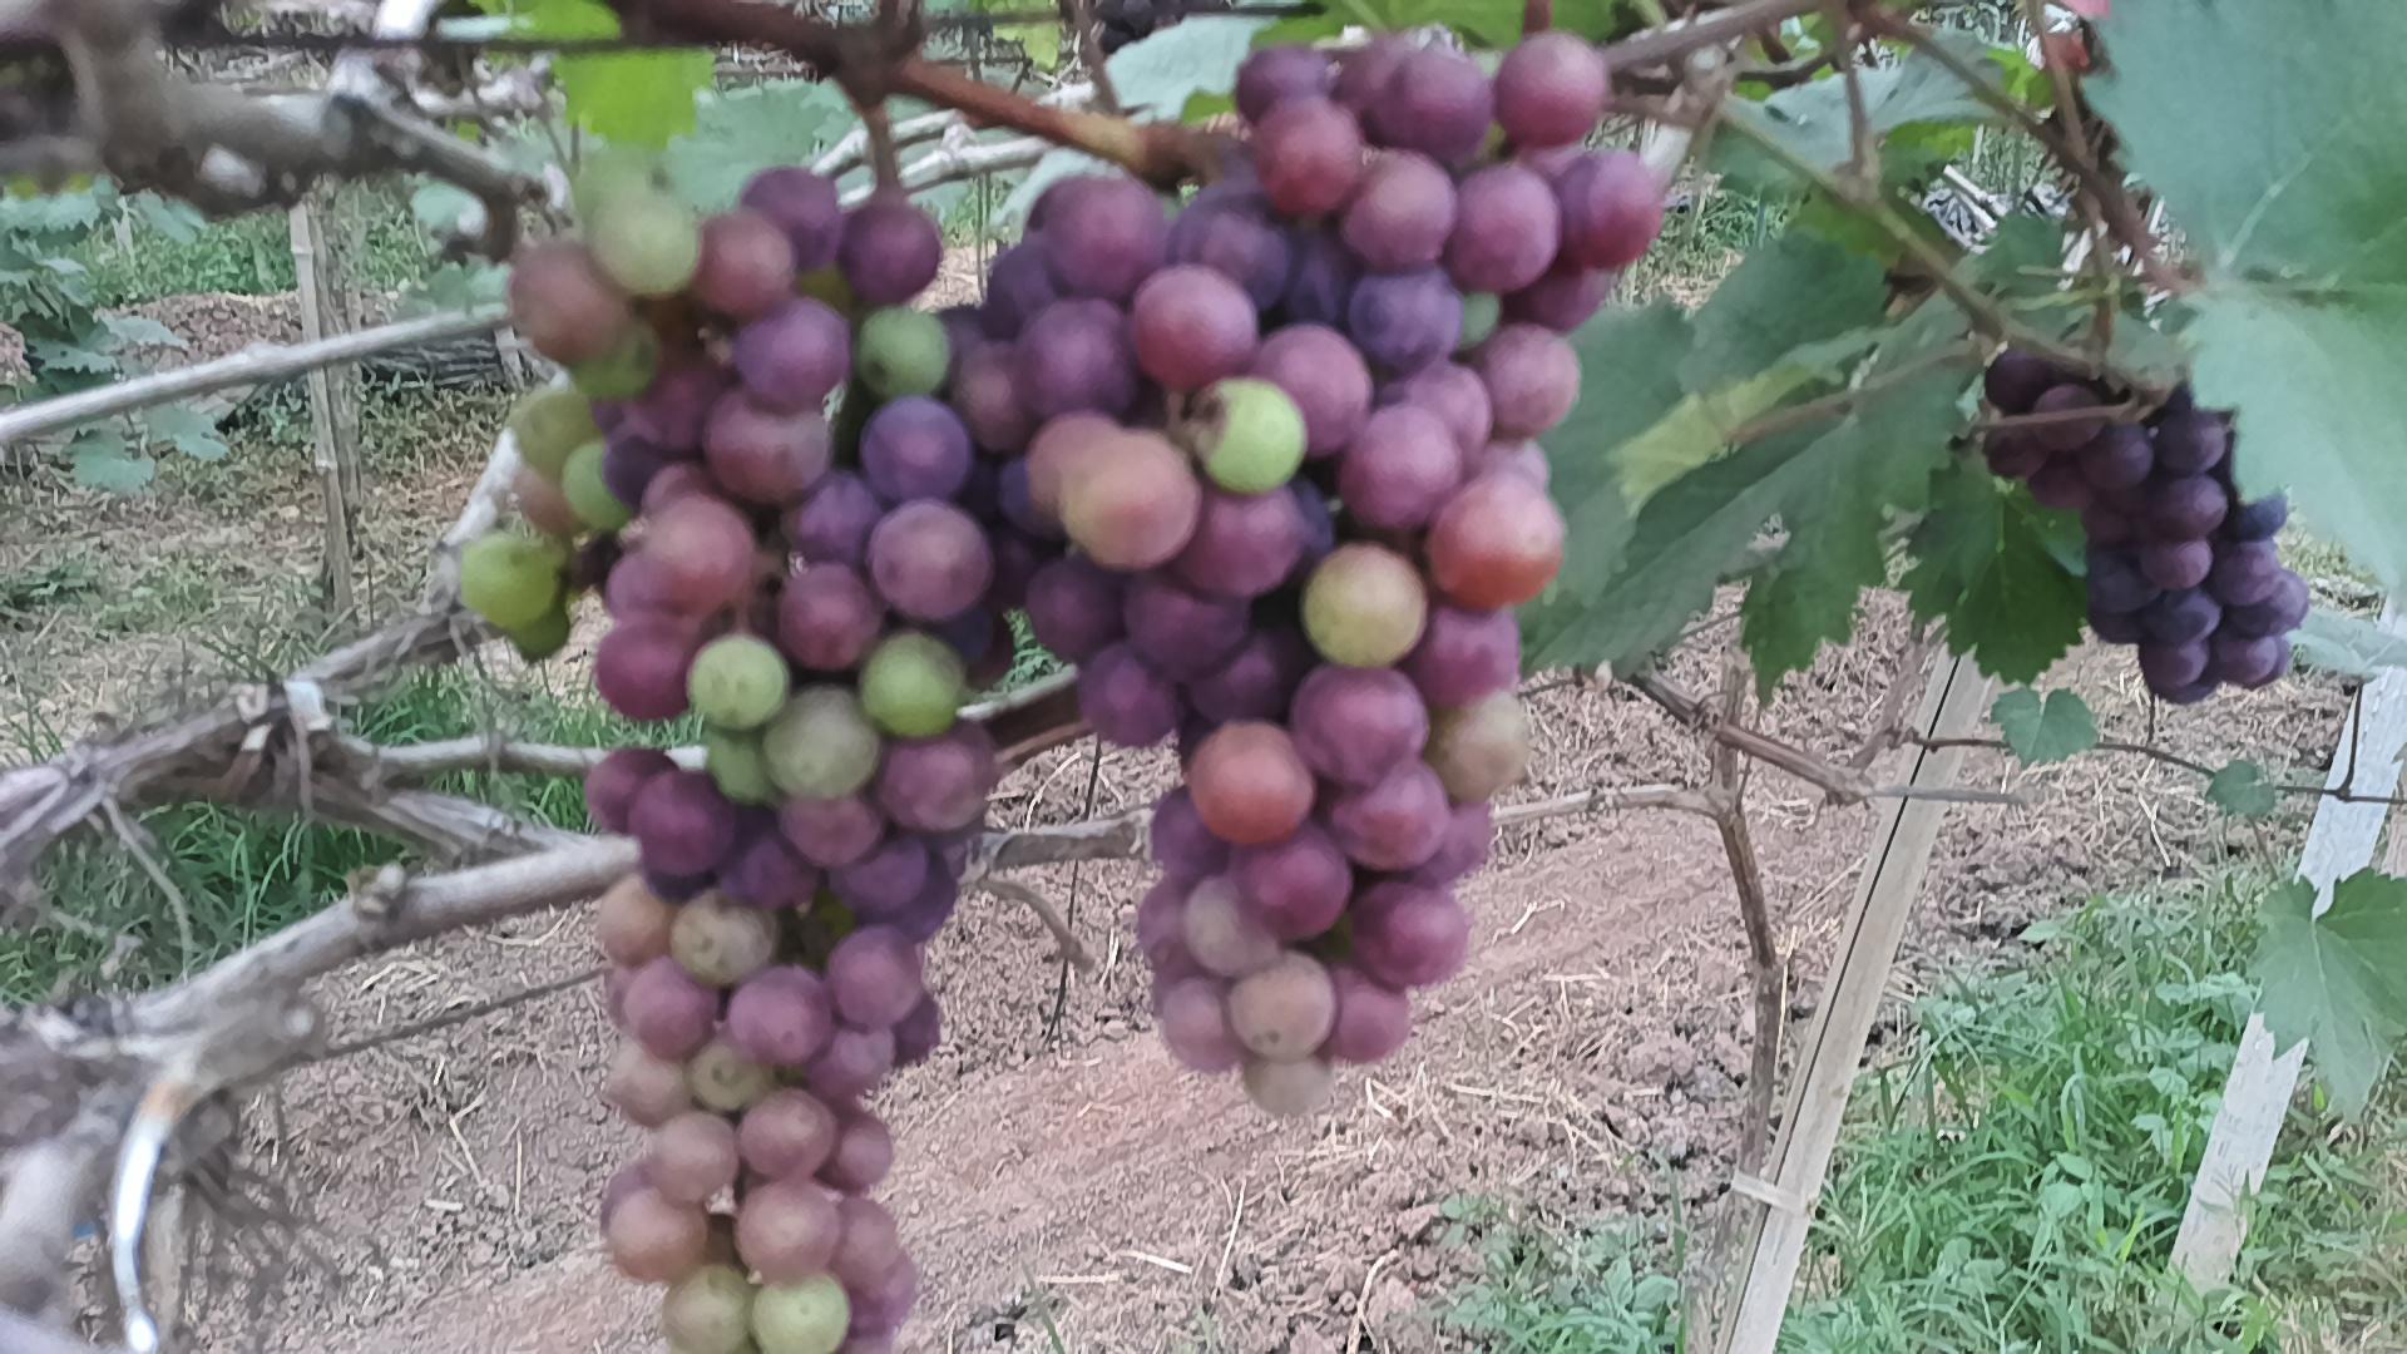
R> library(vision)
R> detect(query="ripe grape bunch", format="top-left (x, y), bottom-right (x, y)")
top-left (1983, 349), bottom-right (2309, 703)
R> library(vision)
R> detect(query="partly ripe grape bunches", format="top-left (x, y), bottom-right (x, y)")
top-left (458, 144), bottom-right (1048, 1353)
top-left (935, 31), bottom-right (1664, 1115)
